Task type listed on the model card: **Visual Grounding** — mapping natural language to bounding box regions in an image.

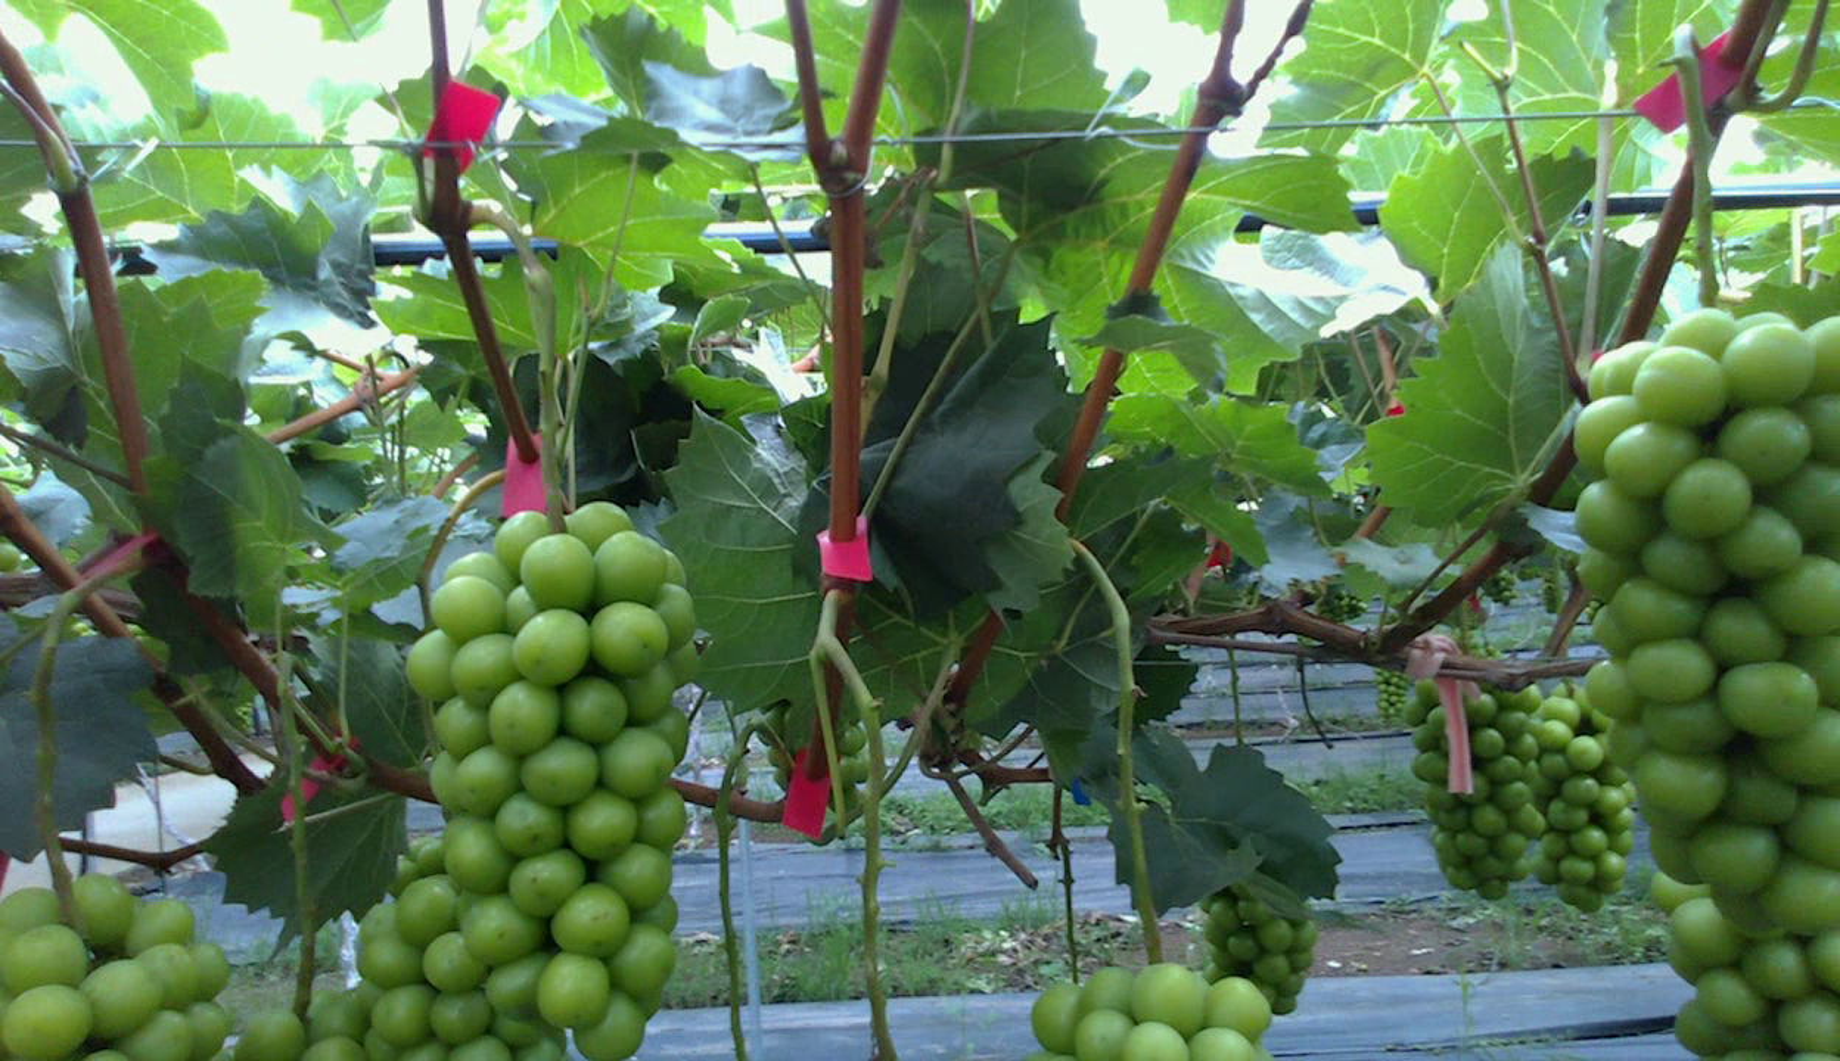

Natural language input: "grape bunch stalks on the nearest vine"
[1675,27,1719,309]
[29,553,175,939]
[1073,538,1162,965]
[469,199,569,533]
[276,650,336,1021]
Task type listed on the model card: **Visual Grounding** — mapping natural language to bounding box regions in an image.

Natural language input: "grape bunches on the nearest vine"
[231,986,370,1060]
[404,501,699,1060]
[352,874,566,1060]
[1647,869,1839,1060]
[0,872,231,1060]
[1026,961,1272,1060]
[1573,307,1839,936]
